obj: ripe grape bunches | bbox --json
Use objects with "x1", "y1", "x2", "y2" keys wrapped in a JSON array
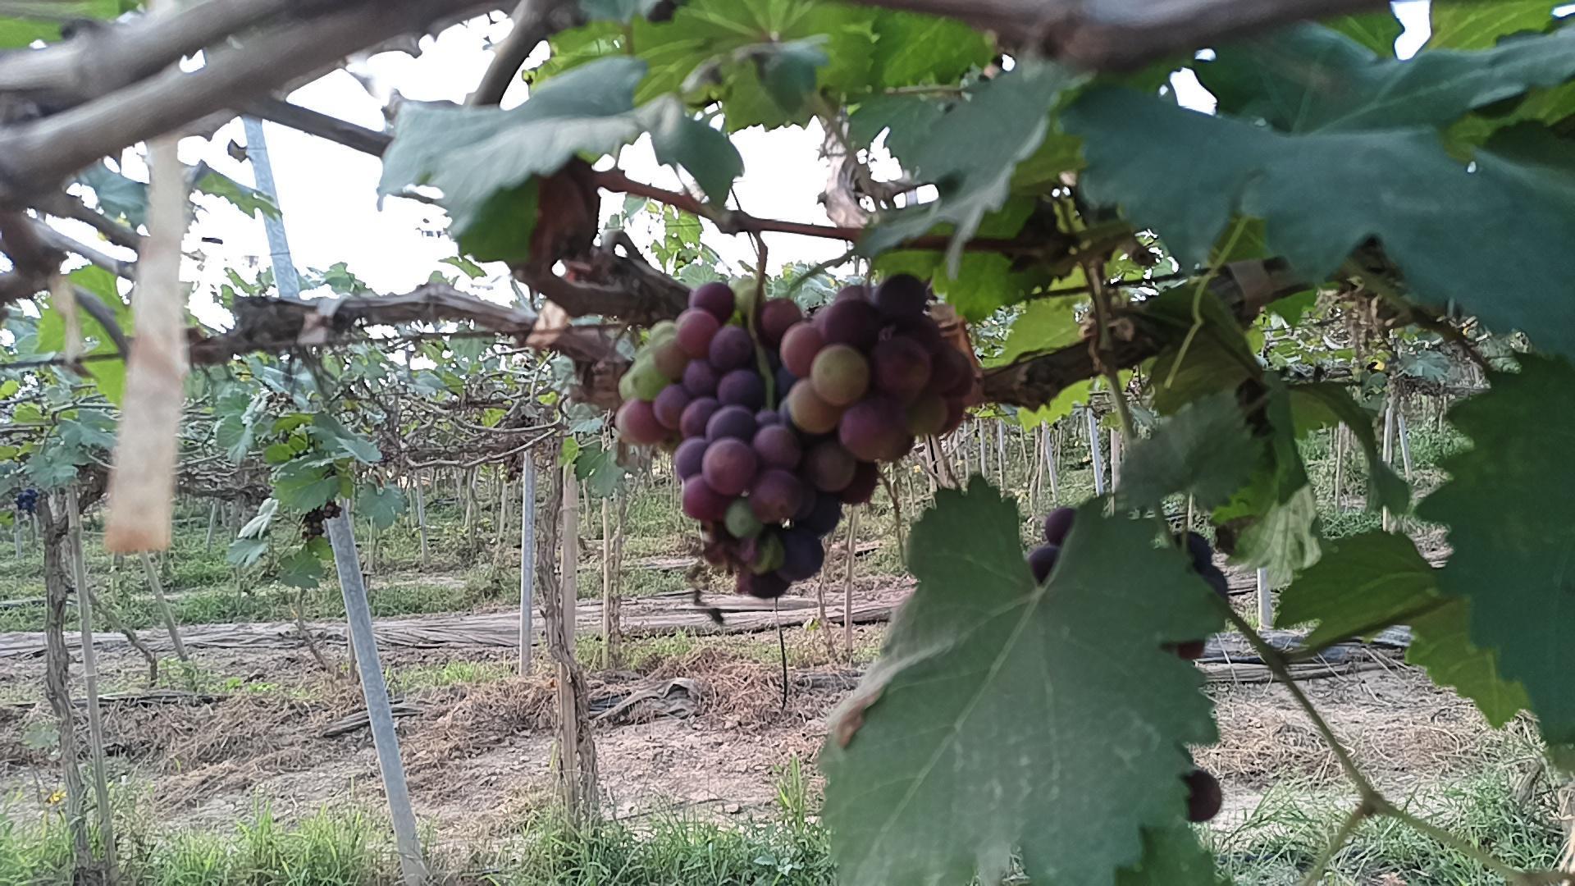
[
  {"x1": 16, "y1": 489, "x2": 37, "y2": 514},
  {"x1": 1027, "y1": 508, "x2": 1231, "y2": 824}
]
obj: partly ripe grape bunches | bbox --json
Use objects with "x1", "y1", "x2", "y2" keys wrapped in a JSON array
[
  {"x1": 618, "y1": 276, "x2": 976, "y2": 597},
  {"x1": 302, "y1": 500, "x2": 341, "y2": 540}
]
